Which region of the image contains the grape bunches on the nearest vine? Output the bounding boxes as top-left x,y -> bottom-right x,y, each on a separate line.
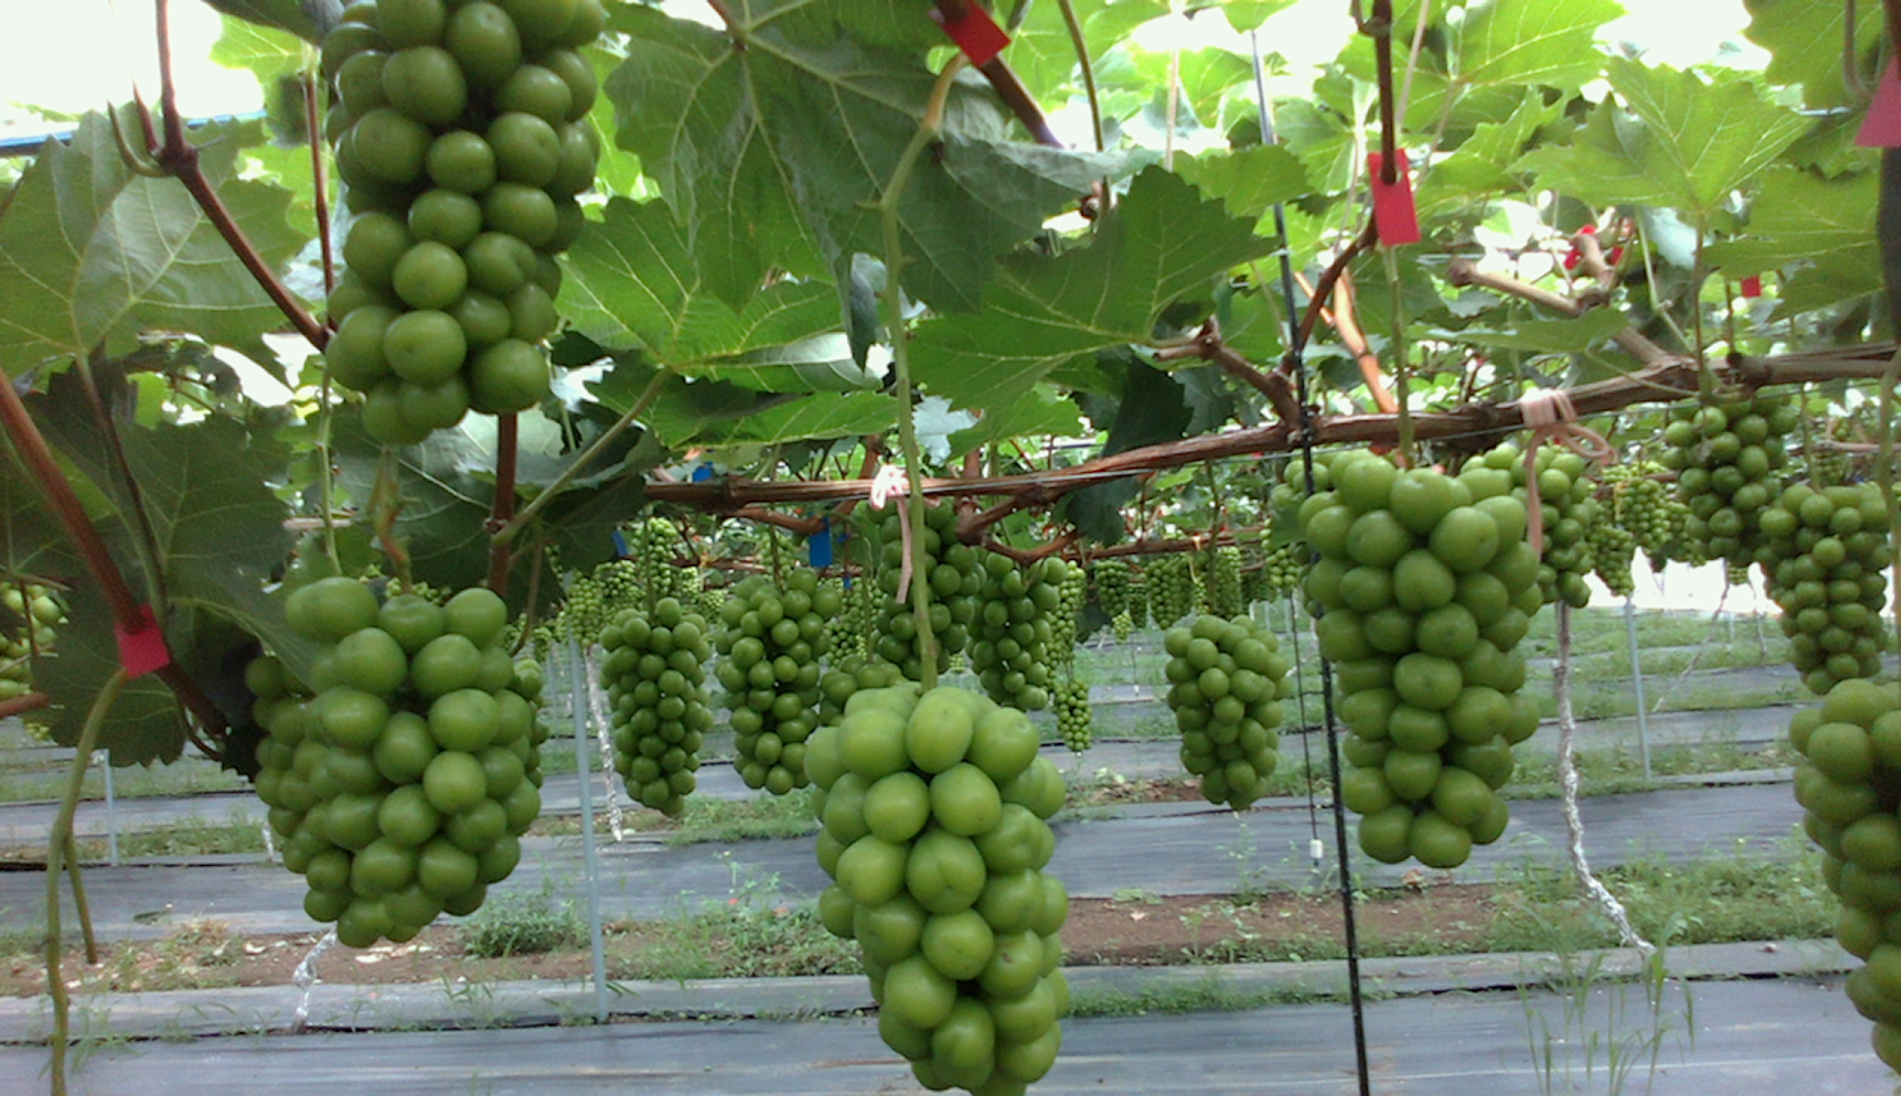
285,574 -> 541,926
803,680 -> 1072,1094
1298,449 -> 1545,866
245,655 -> 419,947
318,0 -> 609,446
1790,676 -> 1899,1076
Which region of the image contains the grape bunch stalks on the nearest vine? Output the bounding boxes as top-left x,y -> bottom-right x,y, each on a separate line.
1380,244 -> 1415,469
879,49 -> 973,694
372,443 -> 411,592
315,367 -> 344,575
